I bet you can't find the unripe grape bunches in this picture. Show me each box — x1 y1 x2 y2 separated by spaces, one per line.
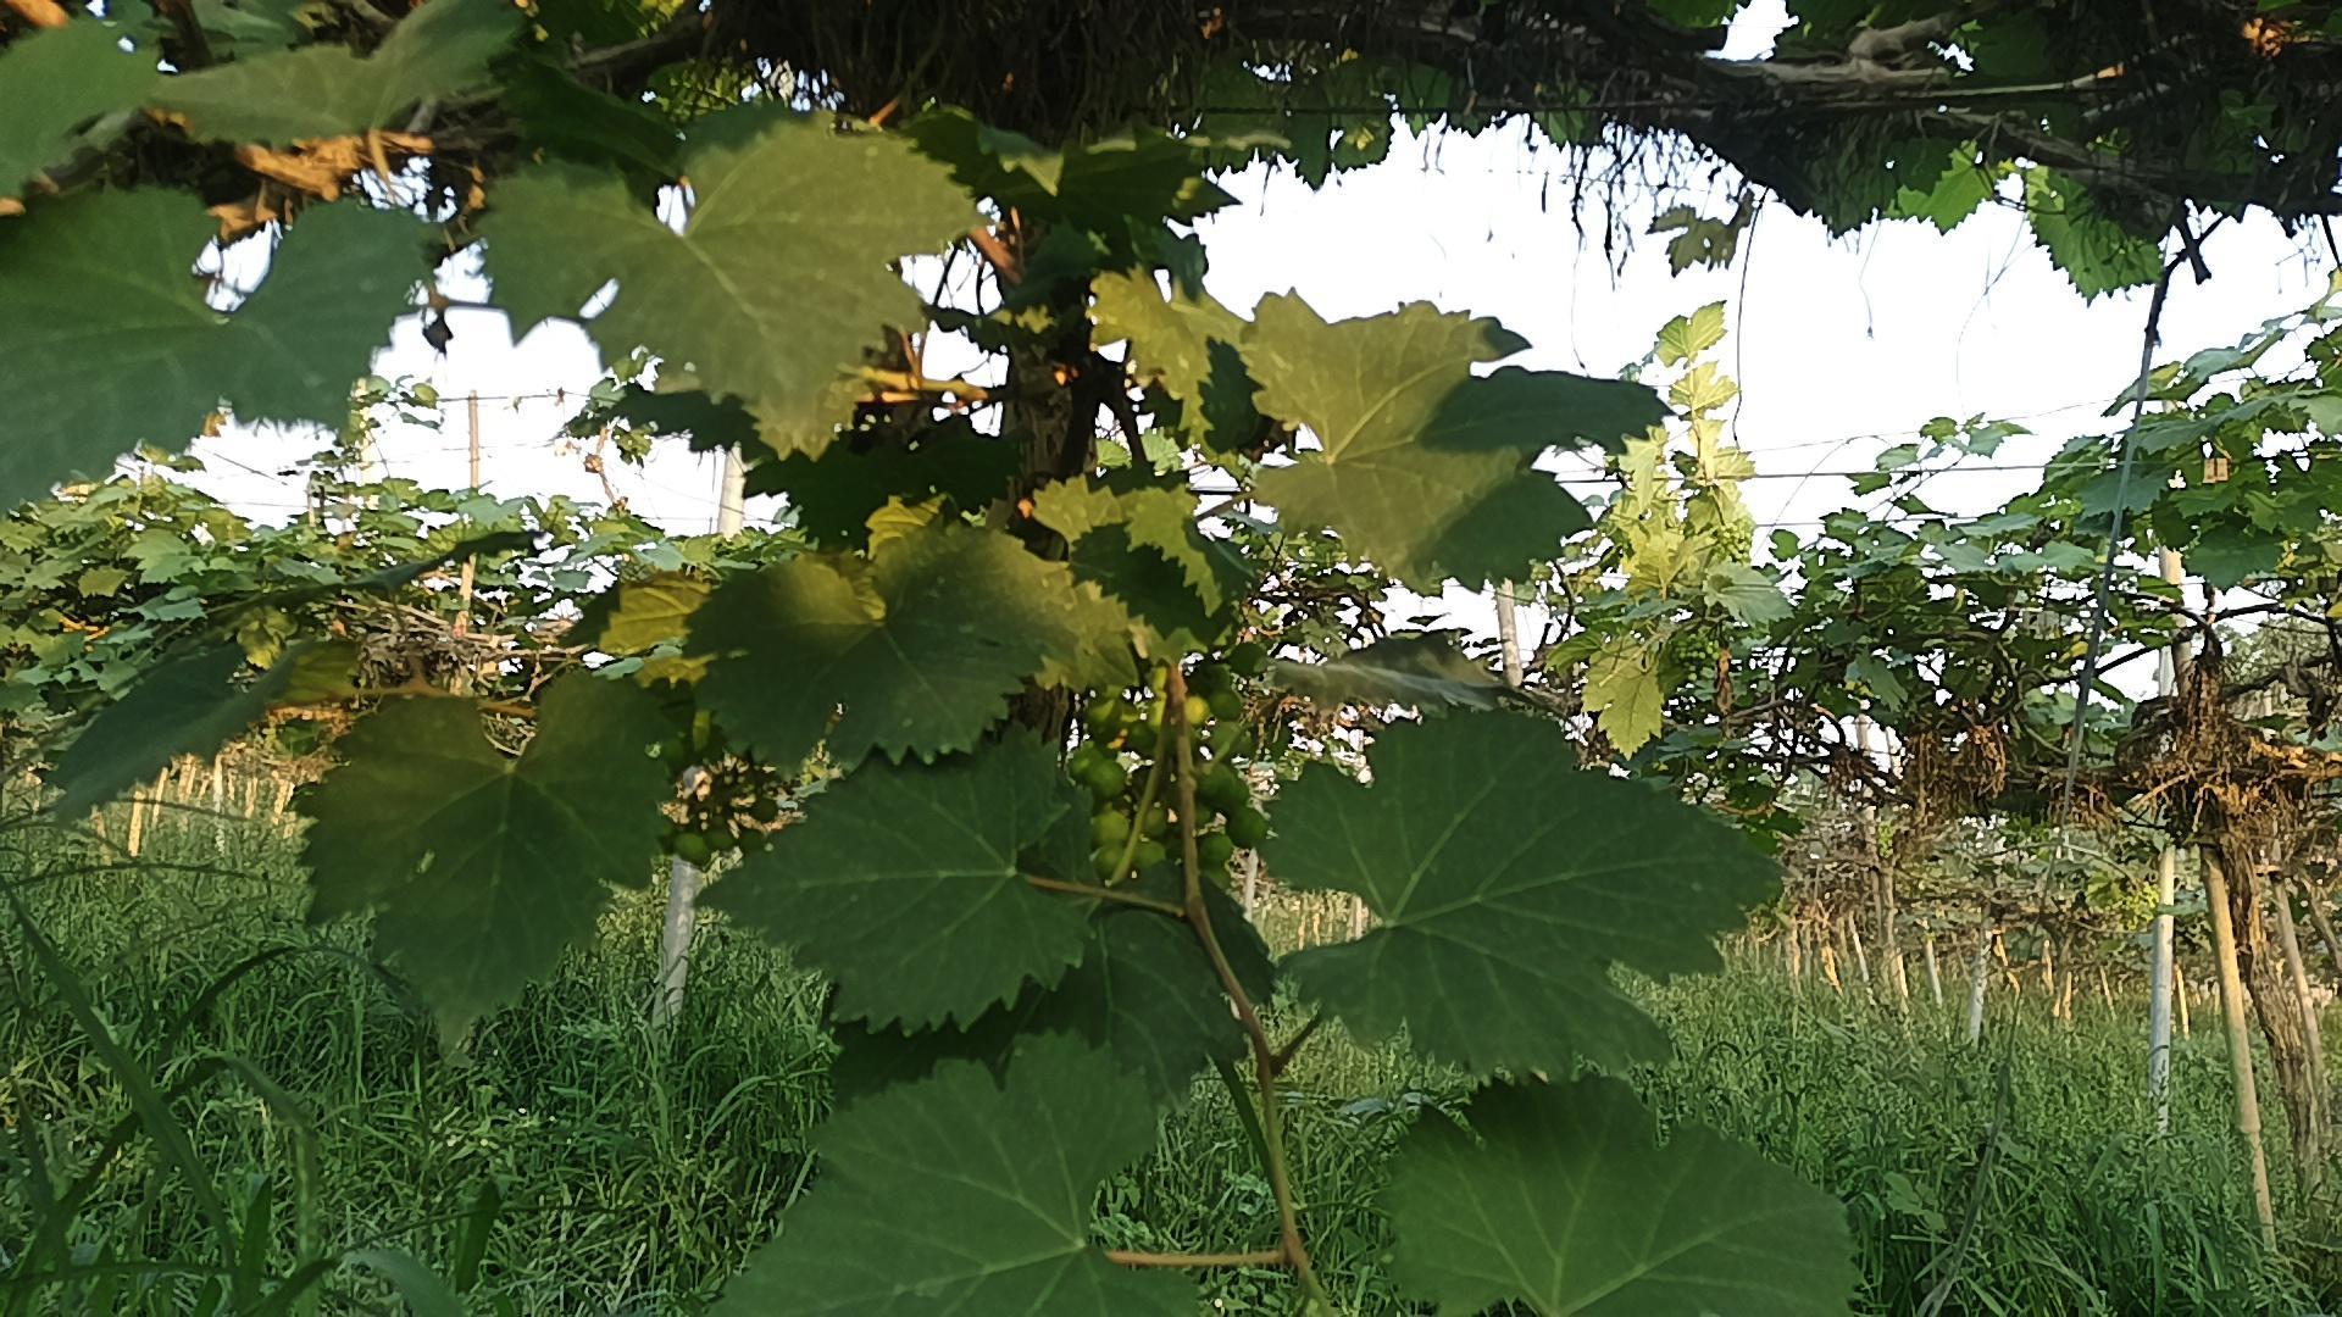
660 712 782 869
1066 644 1264 880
